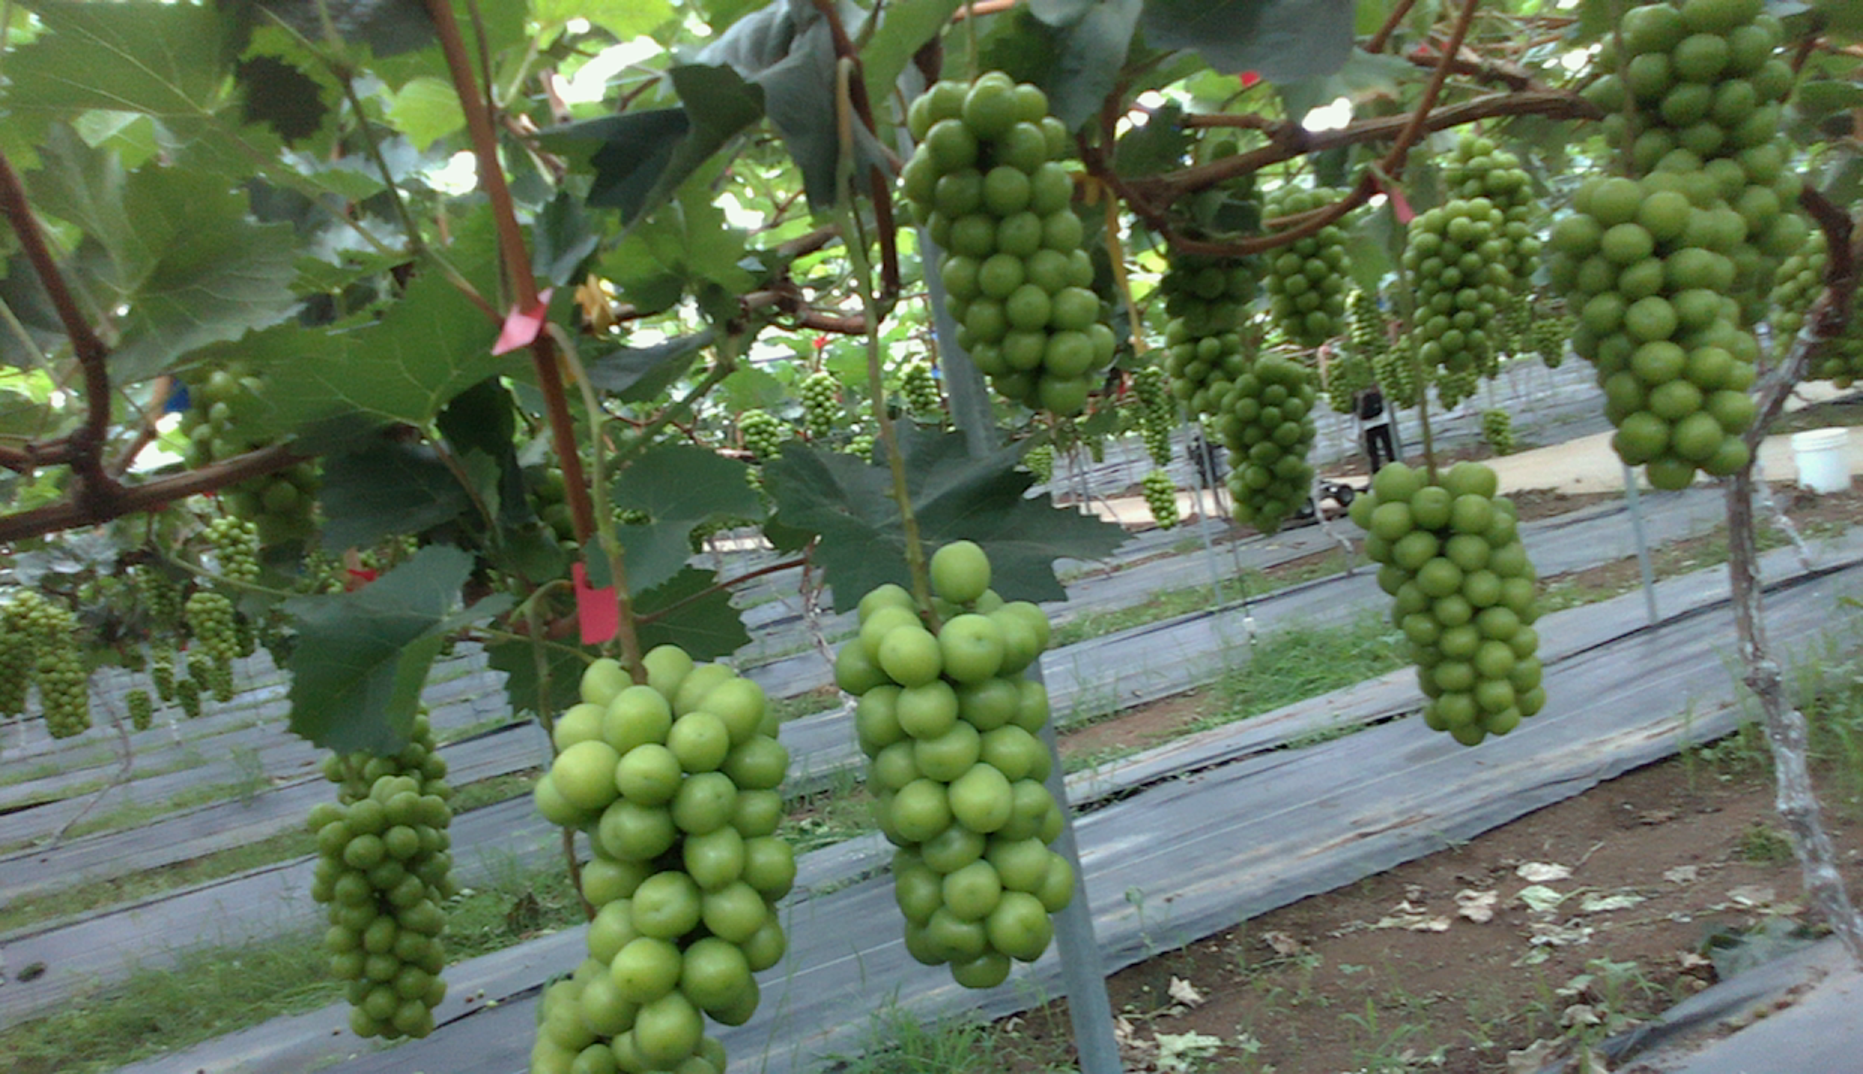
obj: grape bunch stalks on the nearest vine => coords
[966,0,981,84]
[552,328,651,682]
[834,58,940,634]
[1366,164,1438,485]
[1603,0,1635,176]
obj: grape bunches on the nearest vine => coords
[900,70,1114,418]
[1623,0,1803,328]
[1551,173,1760,494]
[528,955,725,1073]
[530,646,796,1068]
[830,541,1075,990]
[1348,459,1548,744]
